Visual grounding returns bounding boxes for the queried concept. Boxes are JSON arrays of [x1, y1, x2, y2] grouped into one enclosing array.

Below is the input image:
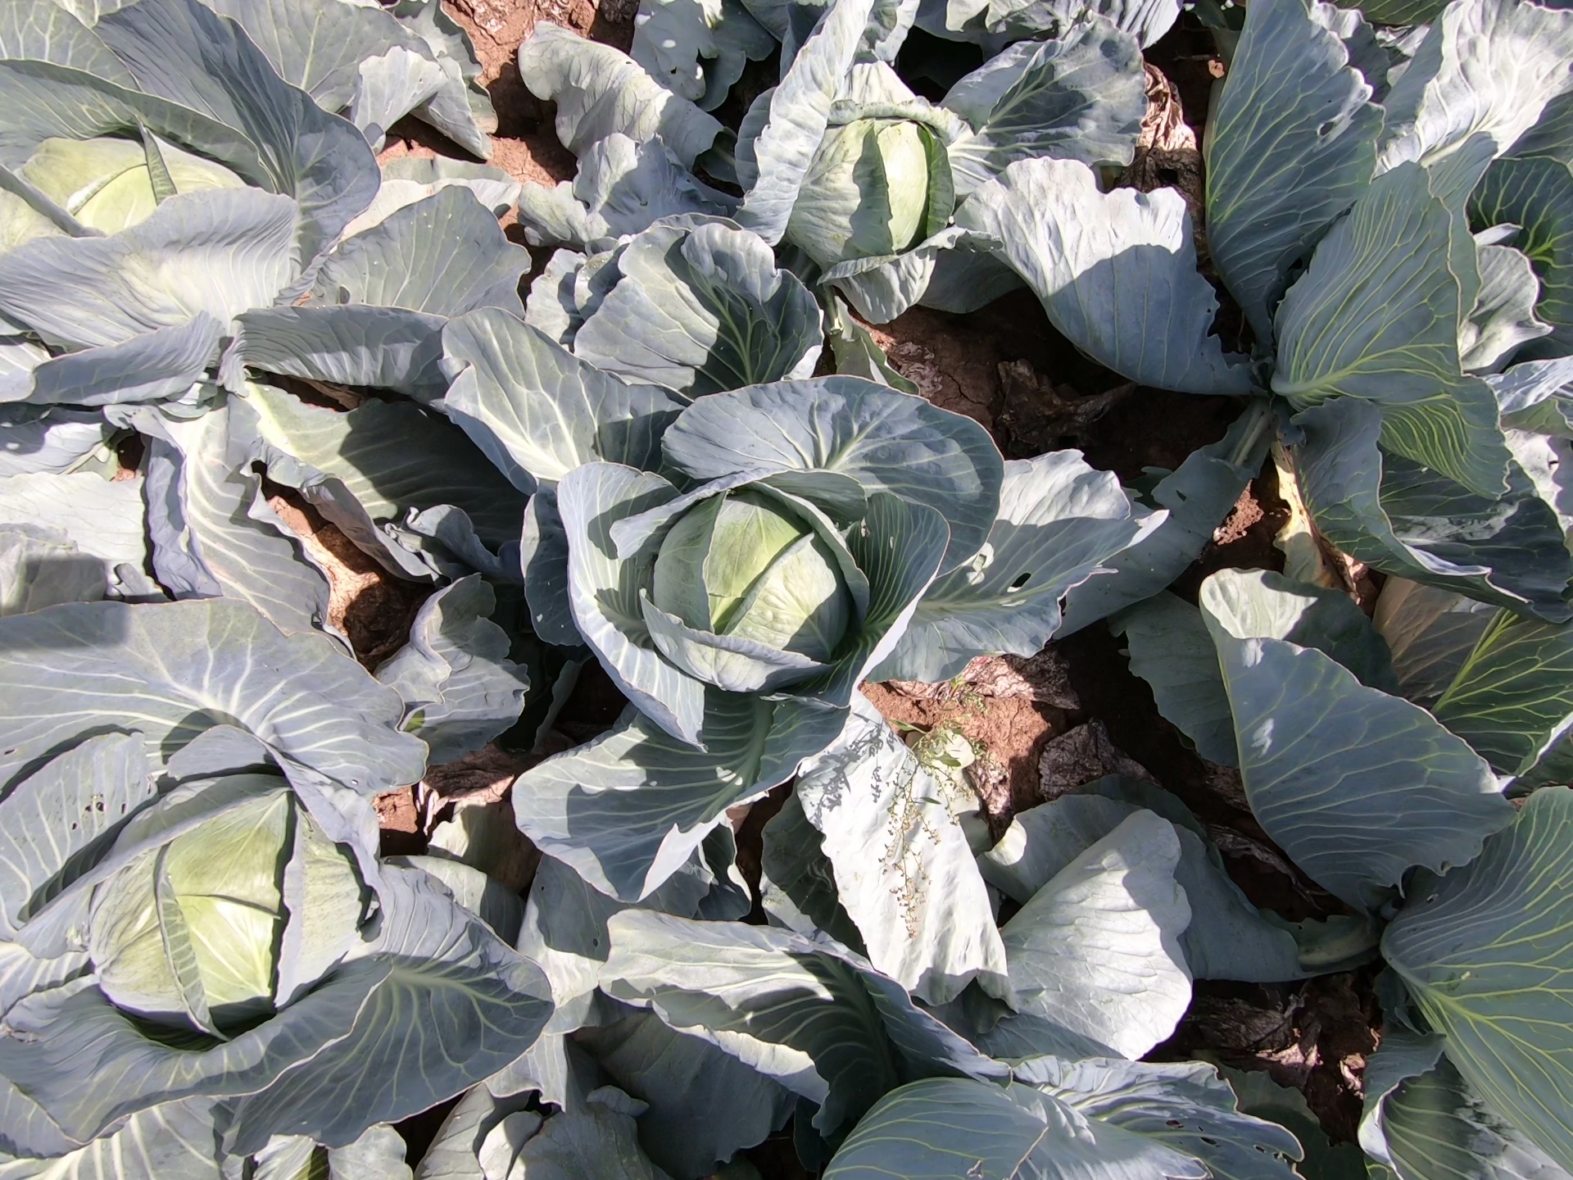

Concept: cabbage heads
[[653, 486, 854, 684], [2, 137, 282, 365], [773, 74, 938, 284], [85, 778, 377, 1037], [1384, 243, 1516, 385]]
